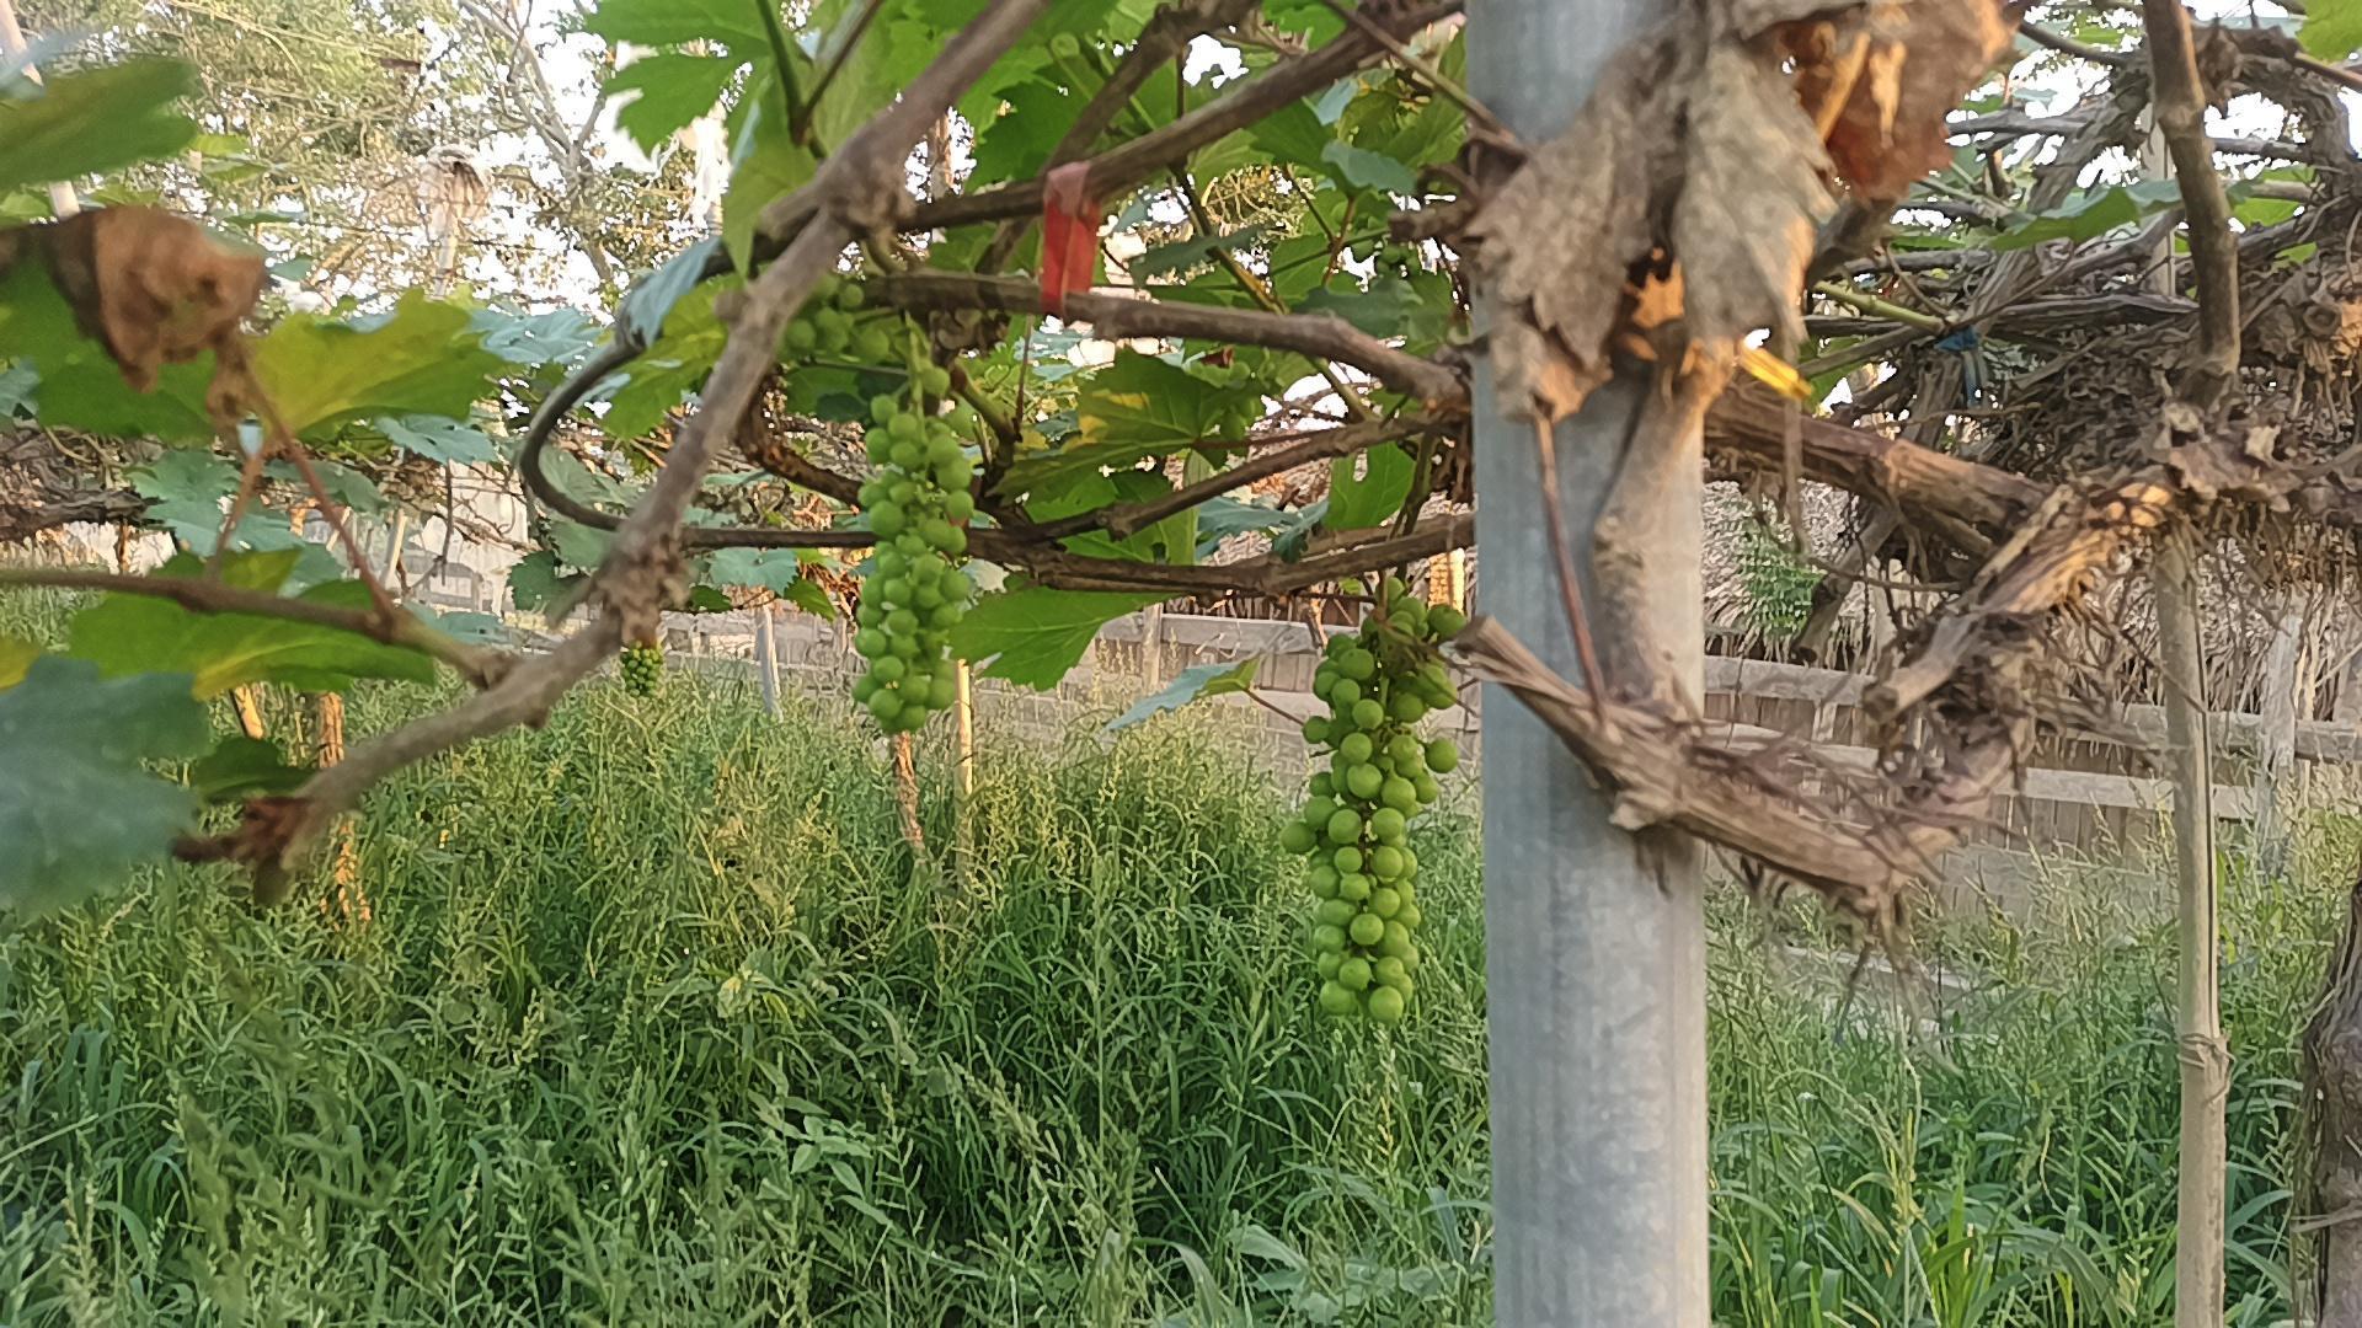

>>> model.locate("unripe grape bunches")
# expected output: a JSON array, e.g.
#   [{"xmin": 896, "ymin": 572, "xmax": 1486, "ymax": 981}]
[
  {"xmin": 619, "ymin": 639, "xmax": 664, "ymax": 700},
  {"xmin": 1281, "ymin": 577, "xmax": 1466, "ymax": 1023},
  {"xmin": 786, "ymin": 272, "xmax": 982, "ymax": 737},
  {"xmin": 1331, "ymin": 187, "xmax": 1422, "ymax": 278}
]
